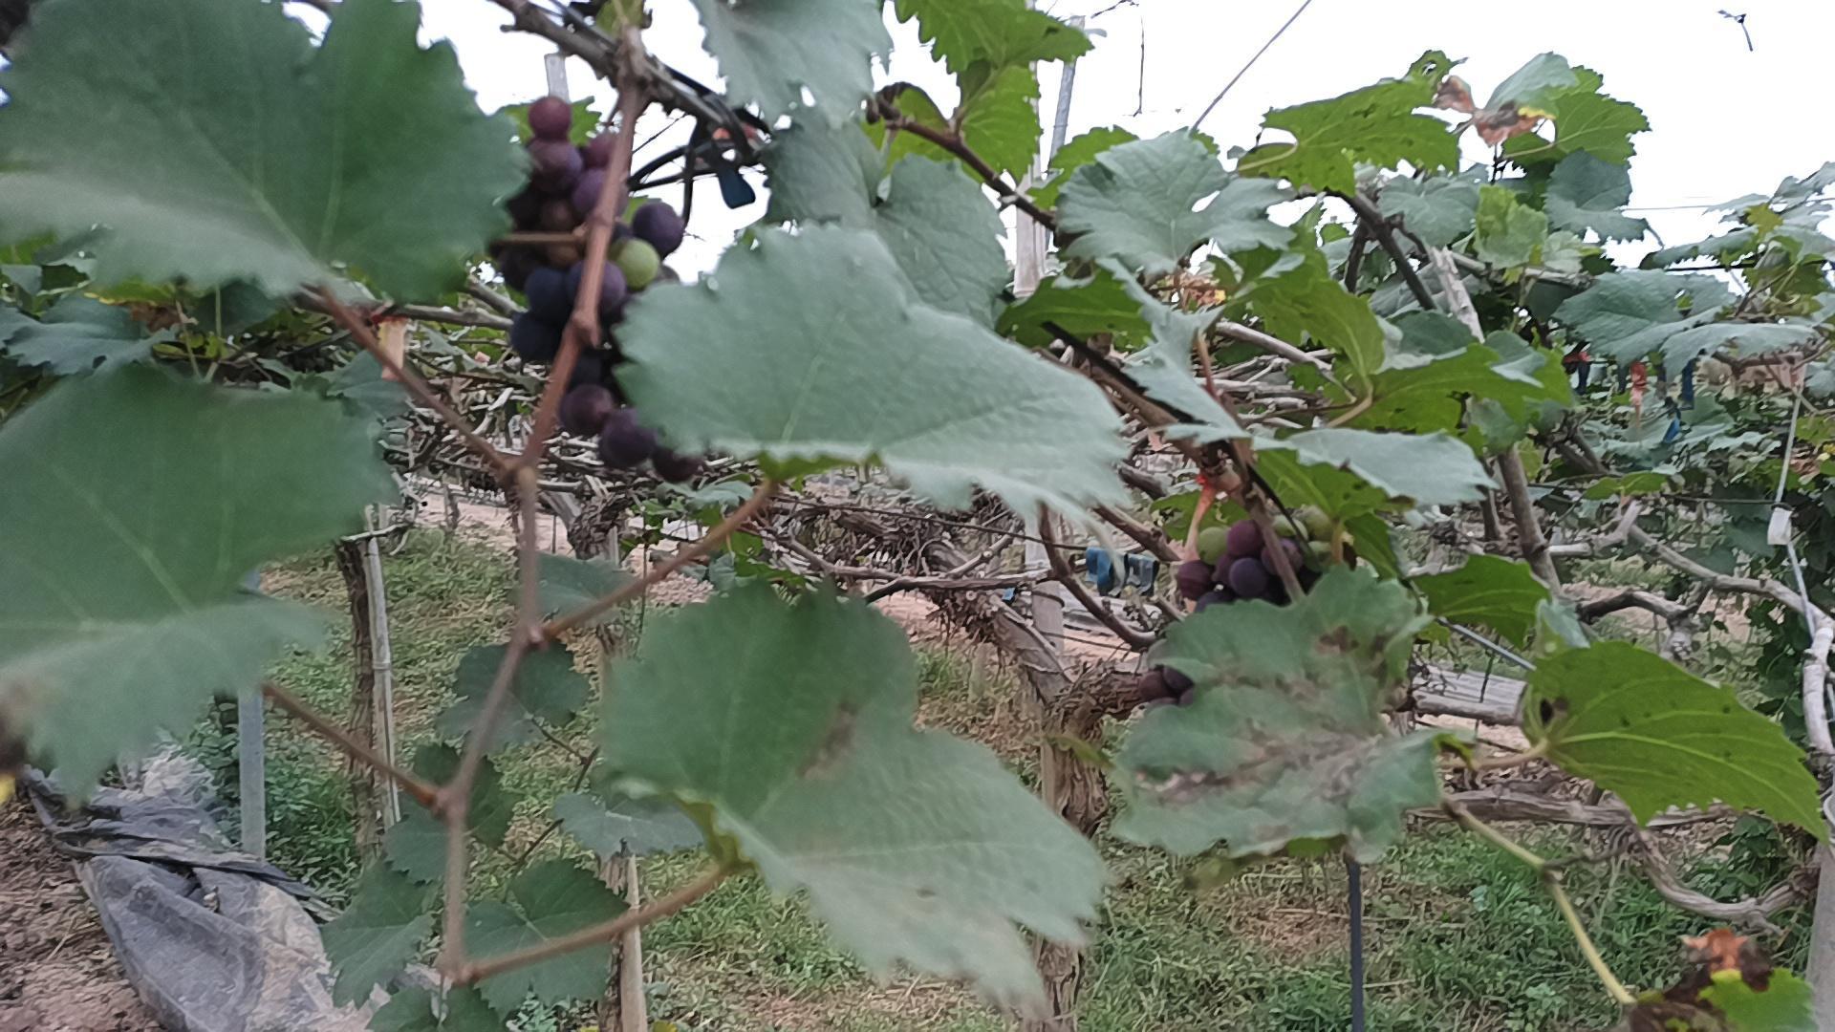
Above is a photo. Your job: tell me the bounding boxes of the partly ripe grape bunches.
[1177,507,1357,604]
[498,96,702,480]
